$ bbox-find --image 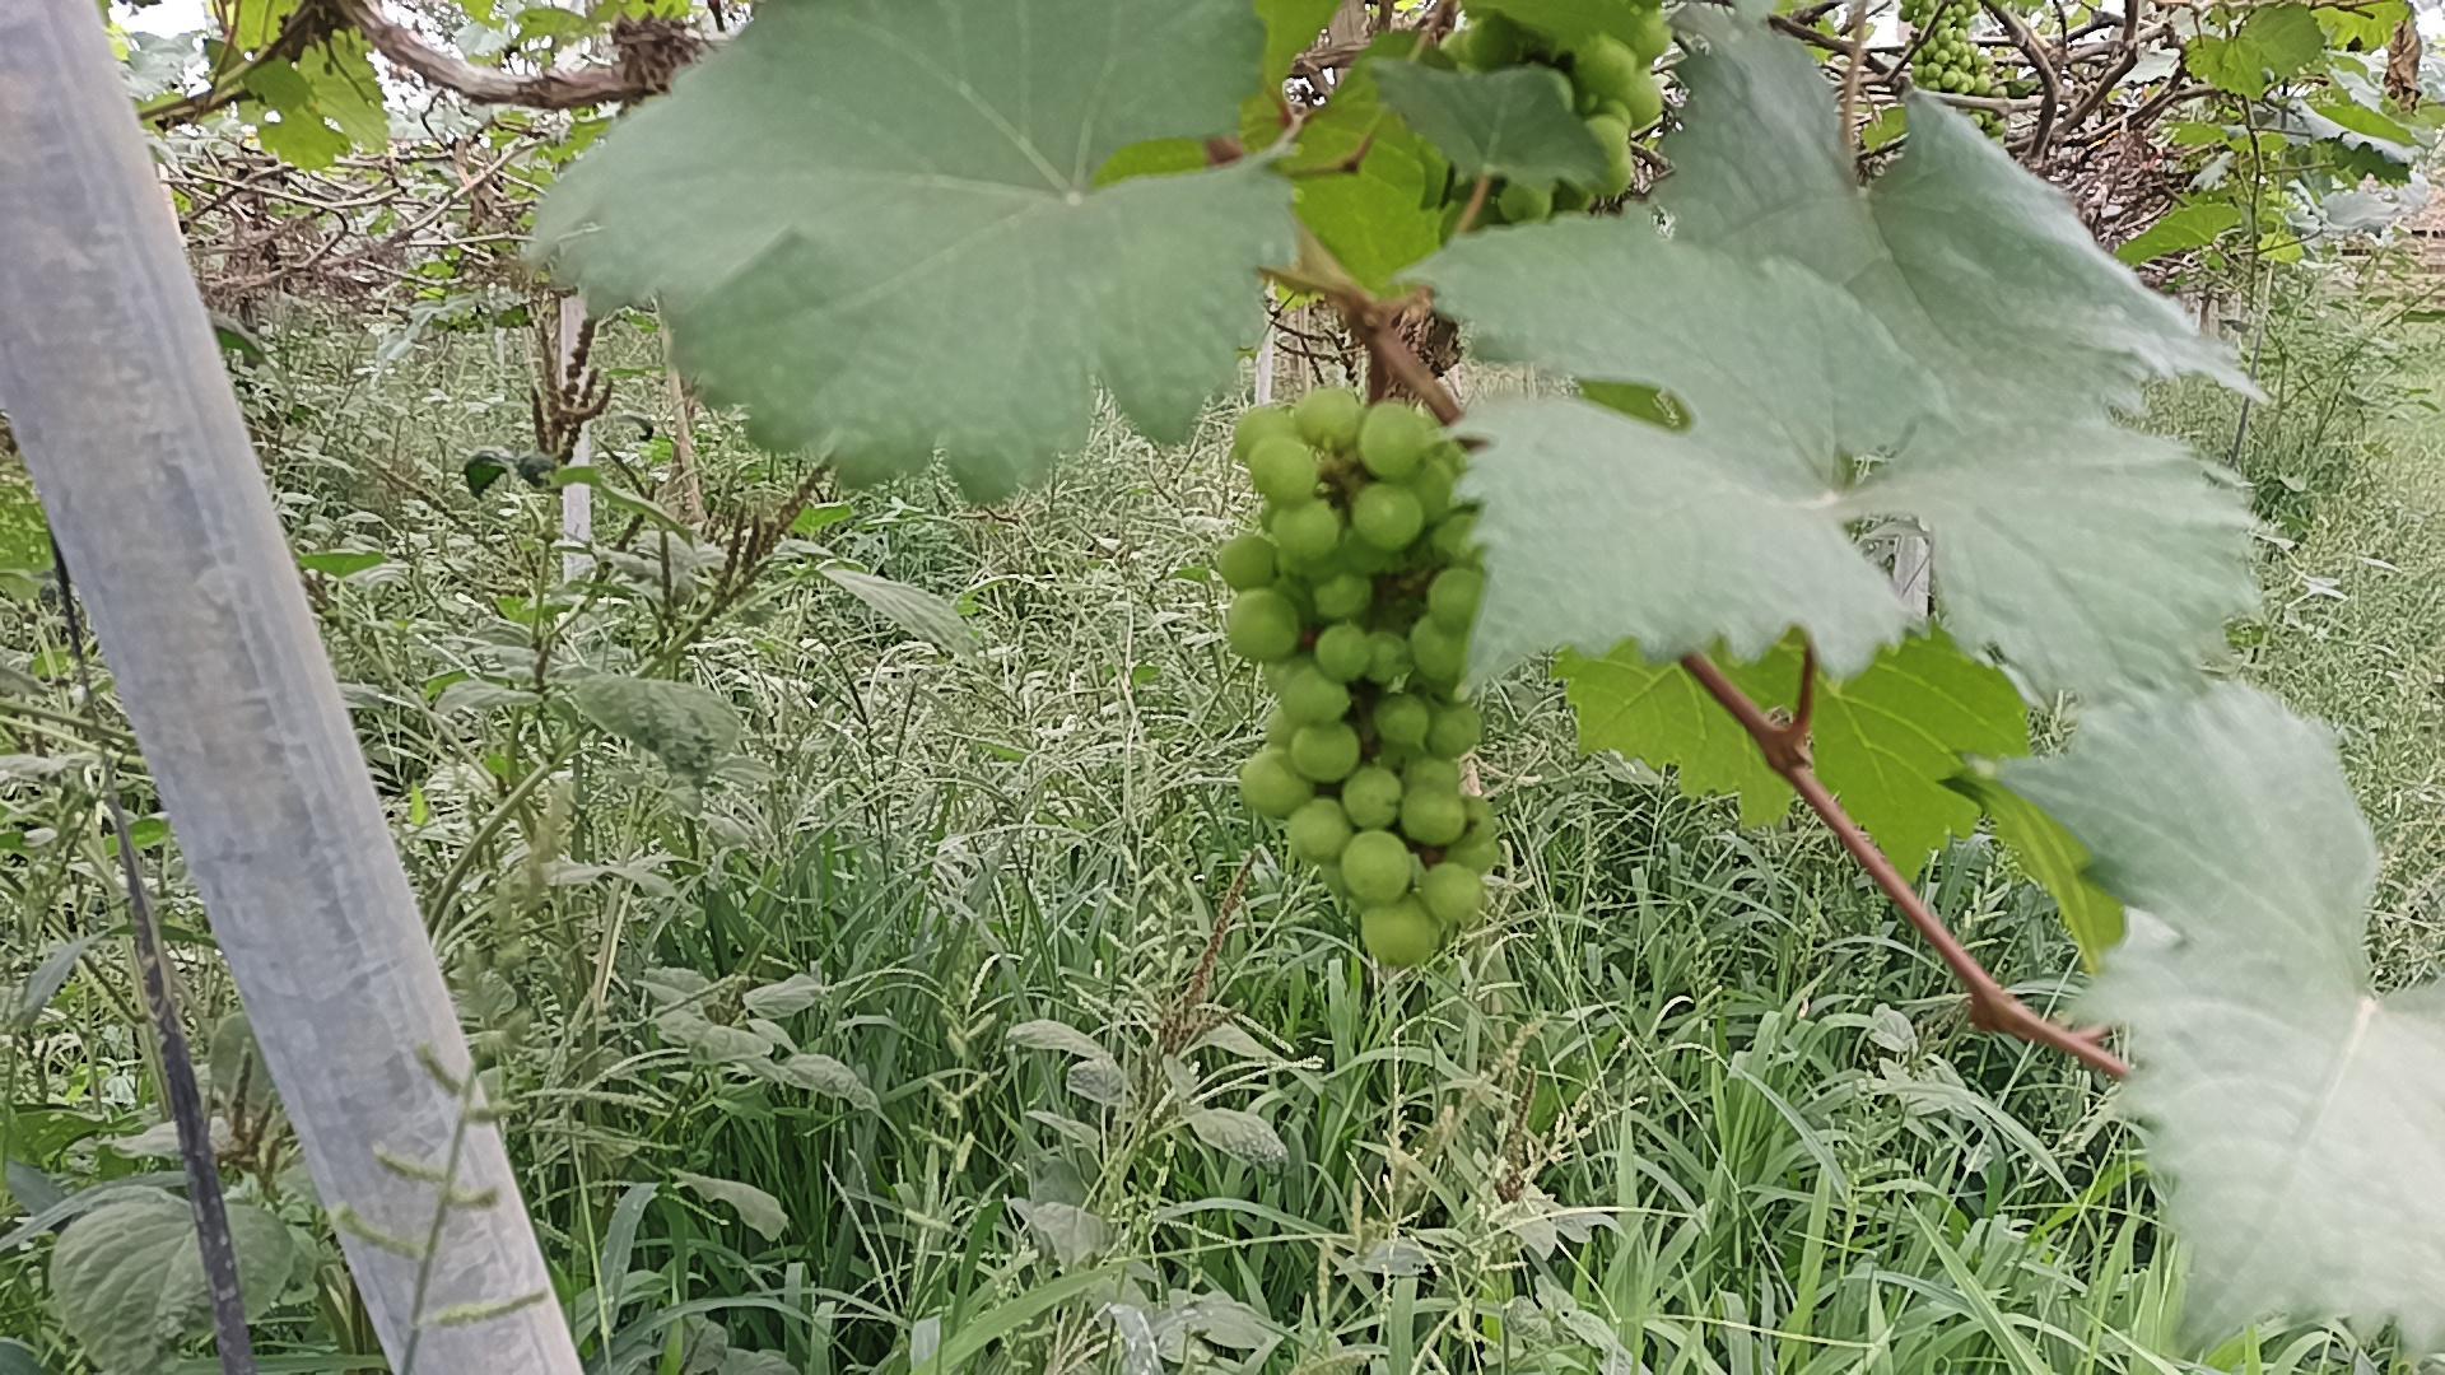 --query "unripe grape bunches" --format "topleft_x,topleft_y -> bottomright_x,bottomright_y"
1900,0 -> 2034,141
1443,0 -> 1671,222
1222,387 -> 1498,968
